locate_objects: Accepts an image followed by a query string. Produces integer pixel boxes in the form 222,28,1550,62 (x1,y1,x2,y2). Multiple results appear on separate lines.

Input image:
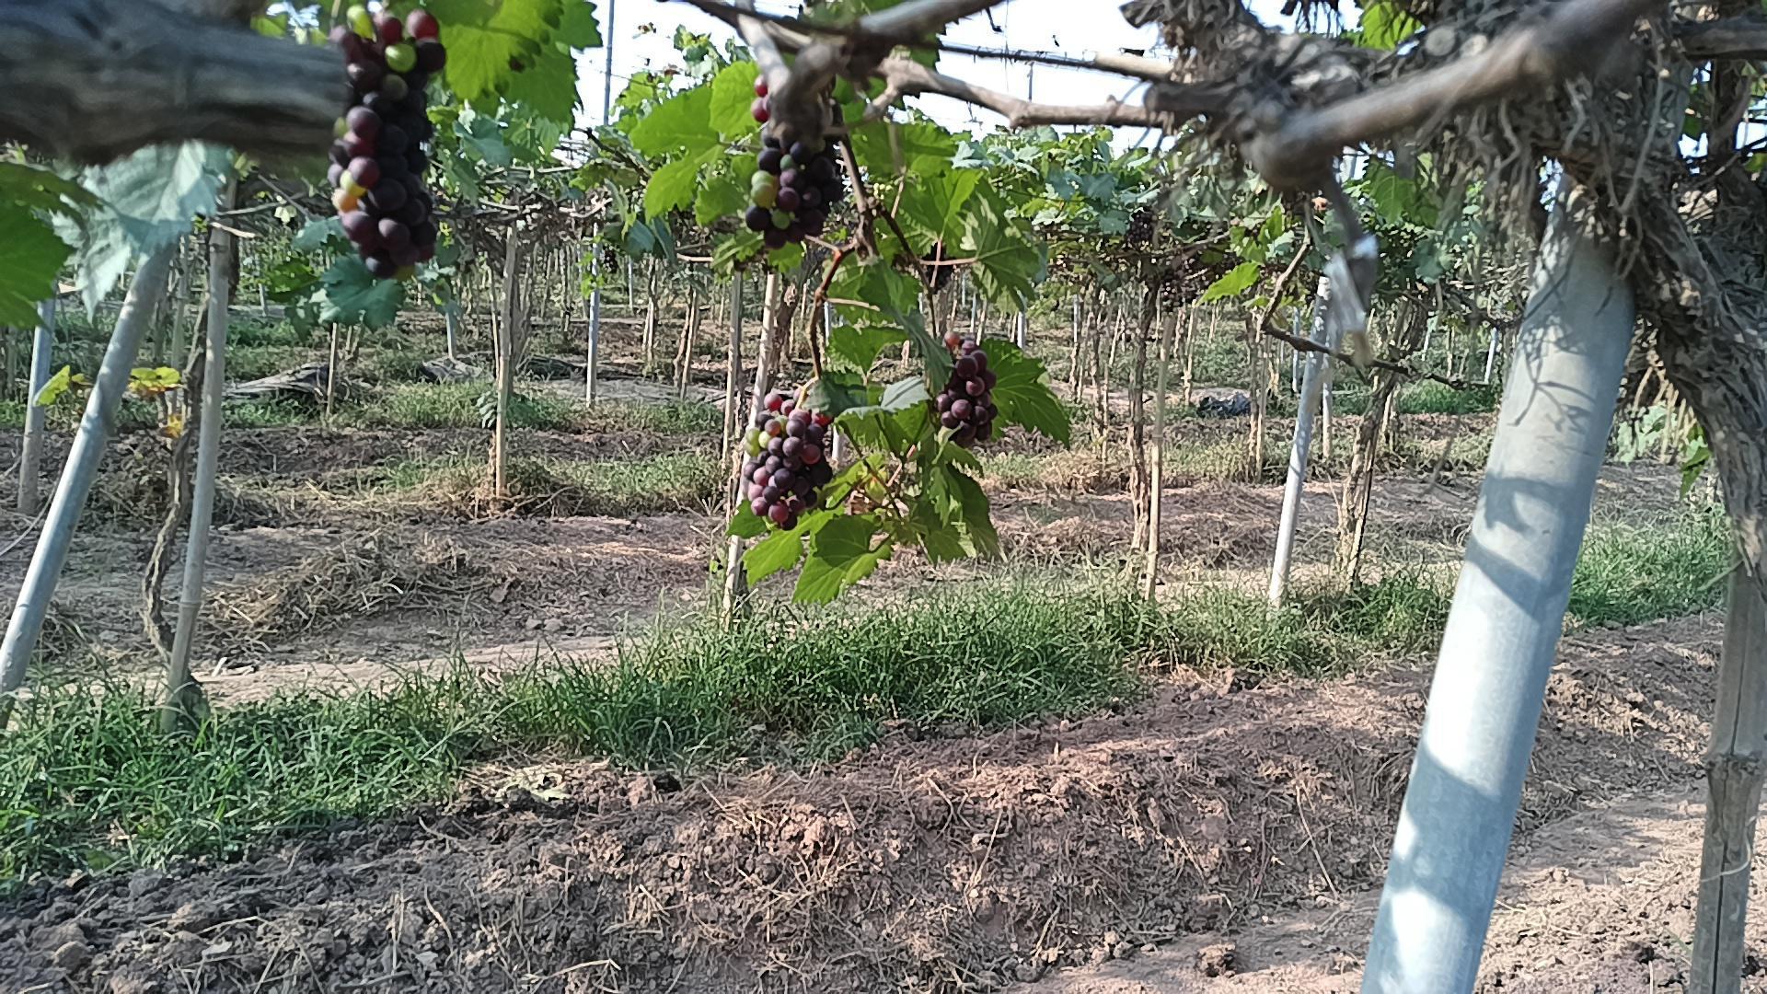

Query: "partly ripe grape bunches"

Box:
330,5,445,278
745,78,841,248
936,331,997,446
743,387,833,527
